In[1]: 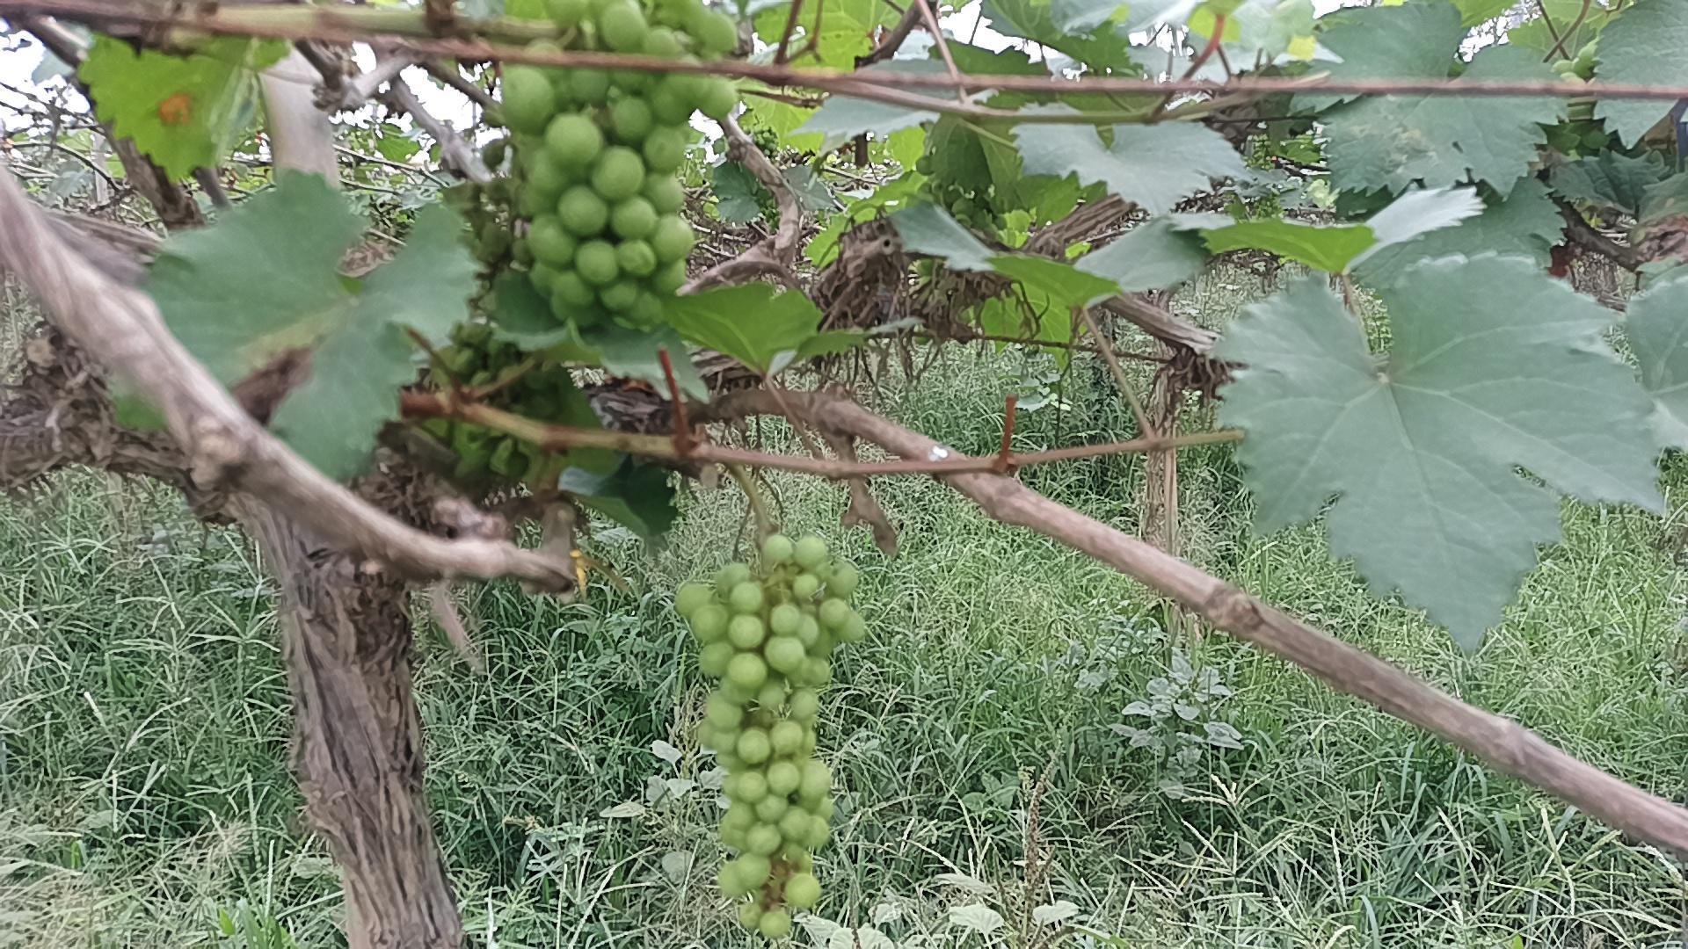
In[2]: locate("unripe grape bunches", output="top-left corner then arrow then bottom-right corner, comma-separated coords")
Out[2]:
502,0 -> 737,326
678,534 -> 864,937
